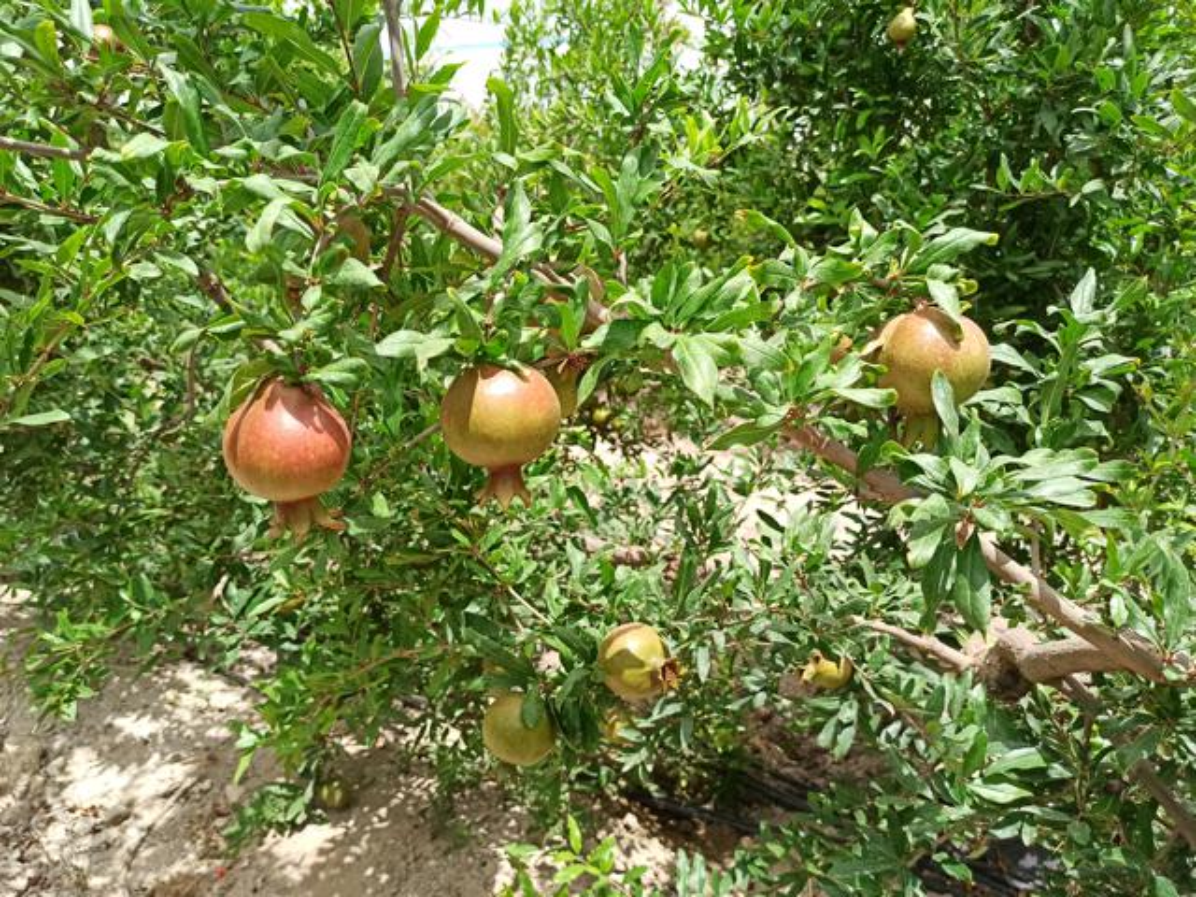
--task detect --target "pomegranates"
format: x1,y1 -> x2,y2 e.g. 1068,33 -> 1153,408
439,363 -> 561,512
484,691 -> 555,787
871,312 -> 990,450
536,366 -> 577,419
796,650 -> 854,691
596,620 -> 684,703
221,376 -> 351,546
